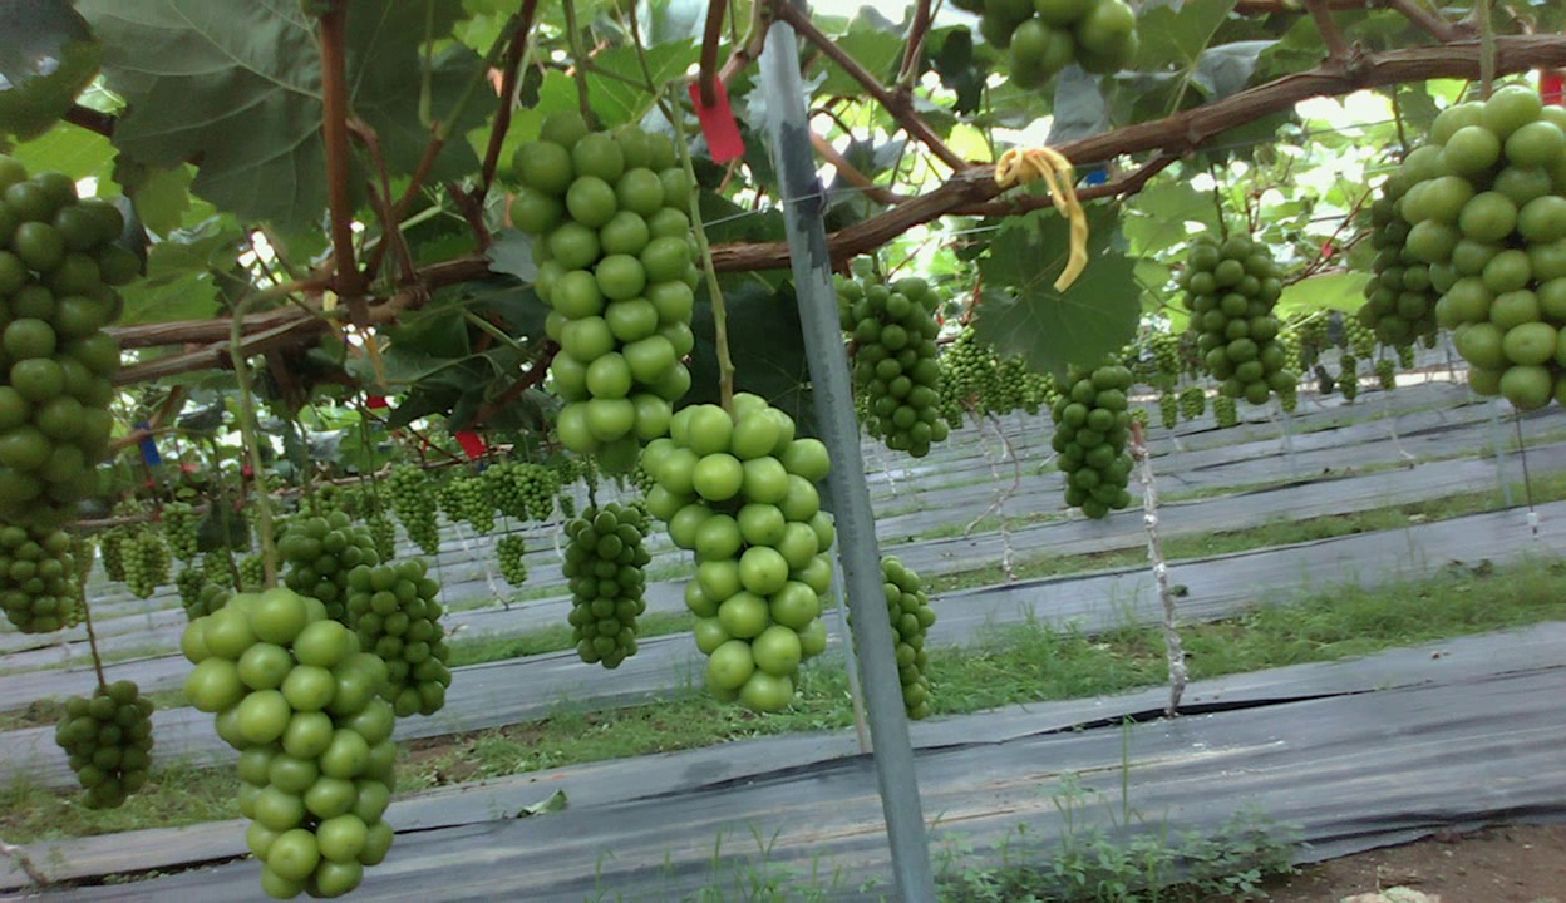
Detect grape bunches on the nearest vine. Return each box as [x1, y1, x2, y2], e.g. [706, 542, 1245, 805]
[1, 150, 141, 528]
[642, 393, 836, 712]
[184, 588, 398, 900]
[1398, 85, 1565, 413]
[506, 112, 701, 479]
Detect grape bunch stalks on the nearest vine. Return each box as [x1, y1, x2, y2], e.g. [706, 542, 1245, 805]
[1461, 0, 1494, 97]
[561, 0, 597, 130]
[670, 75, 734, 410]
[230, 280, 301, 583]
